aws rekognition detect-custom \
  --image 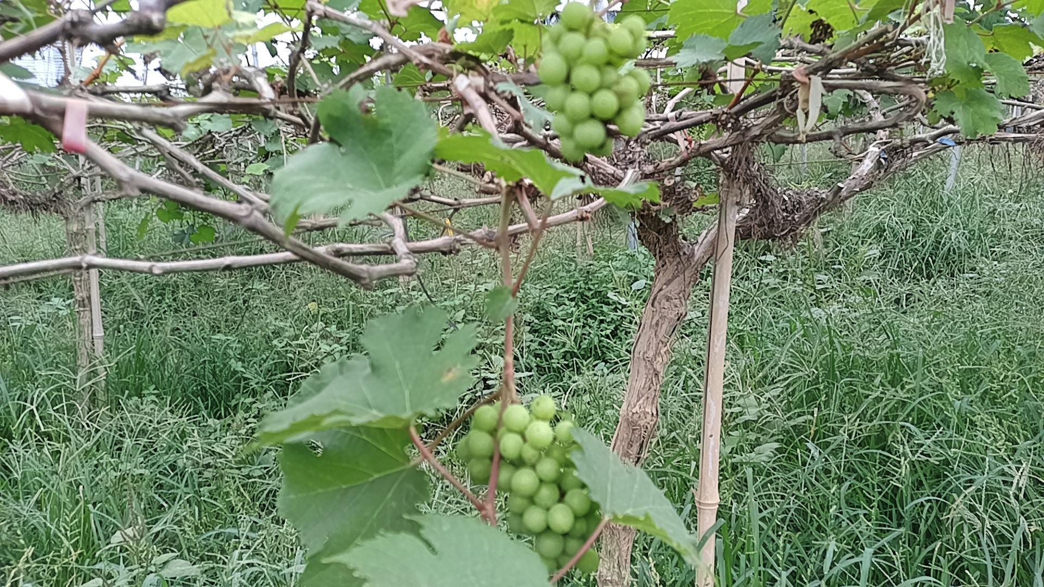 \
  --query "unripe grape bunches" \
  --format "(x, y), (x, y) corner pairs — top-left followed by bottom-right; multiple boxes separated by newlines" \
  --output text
(536, 3), (650, 162)
(457, 395), (601, 573)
